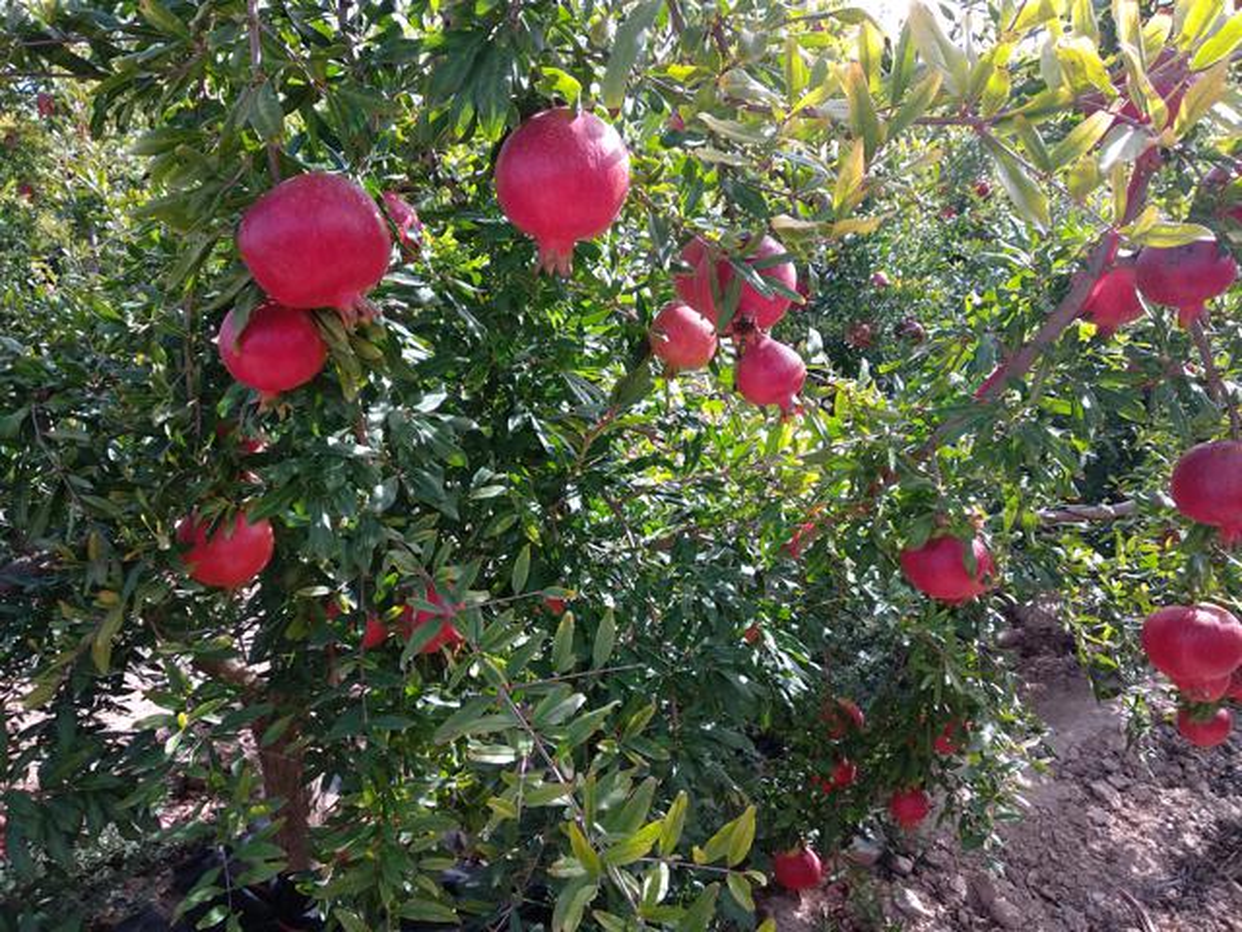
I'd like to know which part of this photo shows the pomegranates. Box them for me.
[887,788,935,825]
[1133,241,1238,330]
[900,536,994,604]
[650,299,720,379]
[175,513,274,594]
[675,237,706,315]
[1174,672,1232,703]
[1143,602,1242,683]
[813,759,860,792]
[695,235,796,344]
[737,332,807,419]
[235,171,388,330]
[359,616,390,650]
[821,697,866,740]
[402,584,470,658]
[1168,439,1242,546]
[495,105,629,280]
[772,849,825,889]
[1075,266,1145,338]
[1176,707,1238,748]
[217,297,324,412]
